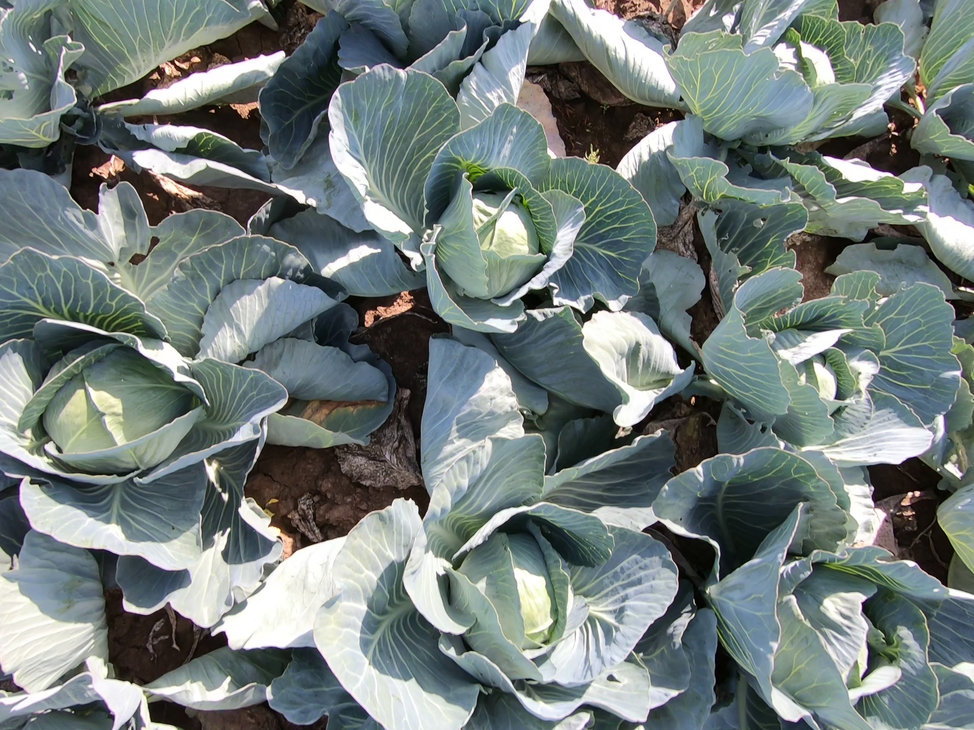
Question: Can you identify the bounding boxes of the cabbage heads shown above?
[768,594,872,689]
[41,343,188,462]
[755,39,836,111]
[766,350,838,421]
[440,194,541,299]
[458,534,574,656]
